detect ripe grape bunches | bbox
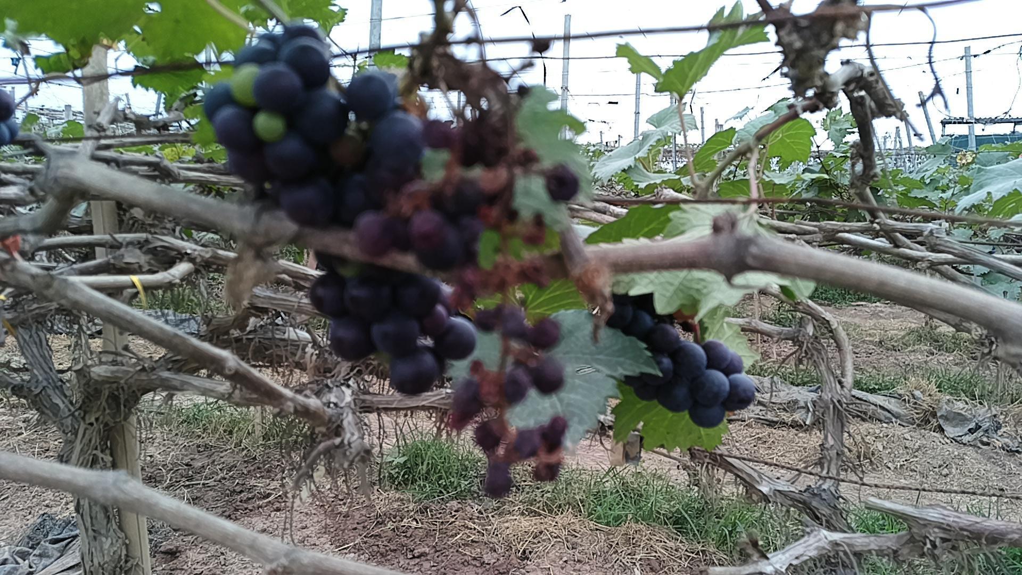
[0,86,20,147]
[606,294,756,428]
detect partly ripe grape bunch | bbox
[204,23,487,395]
